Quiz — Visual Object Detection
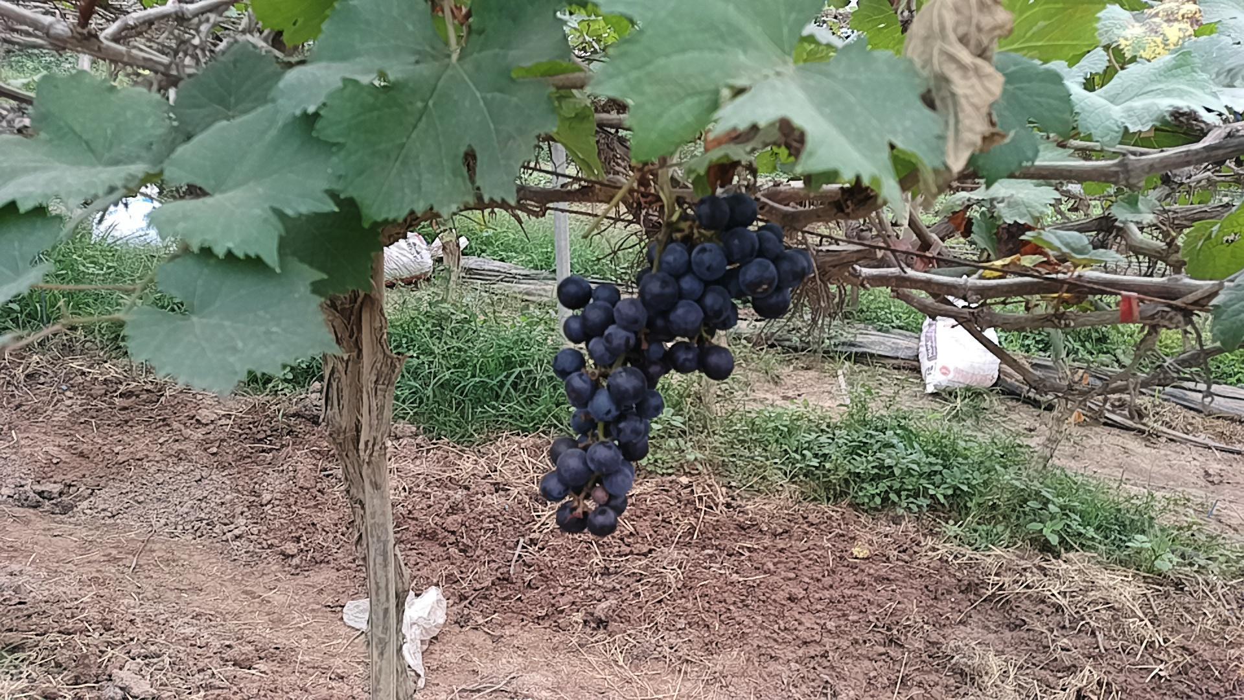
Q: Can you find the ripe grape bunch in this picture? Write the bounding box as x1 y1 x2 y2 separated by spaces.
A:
540 192 813 535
